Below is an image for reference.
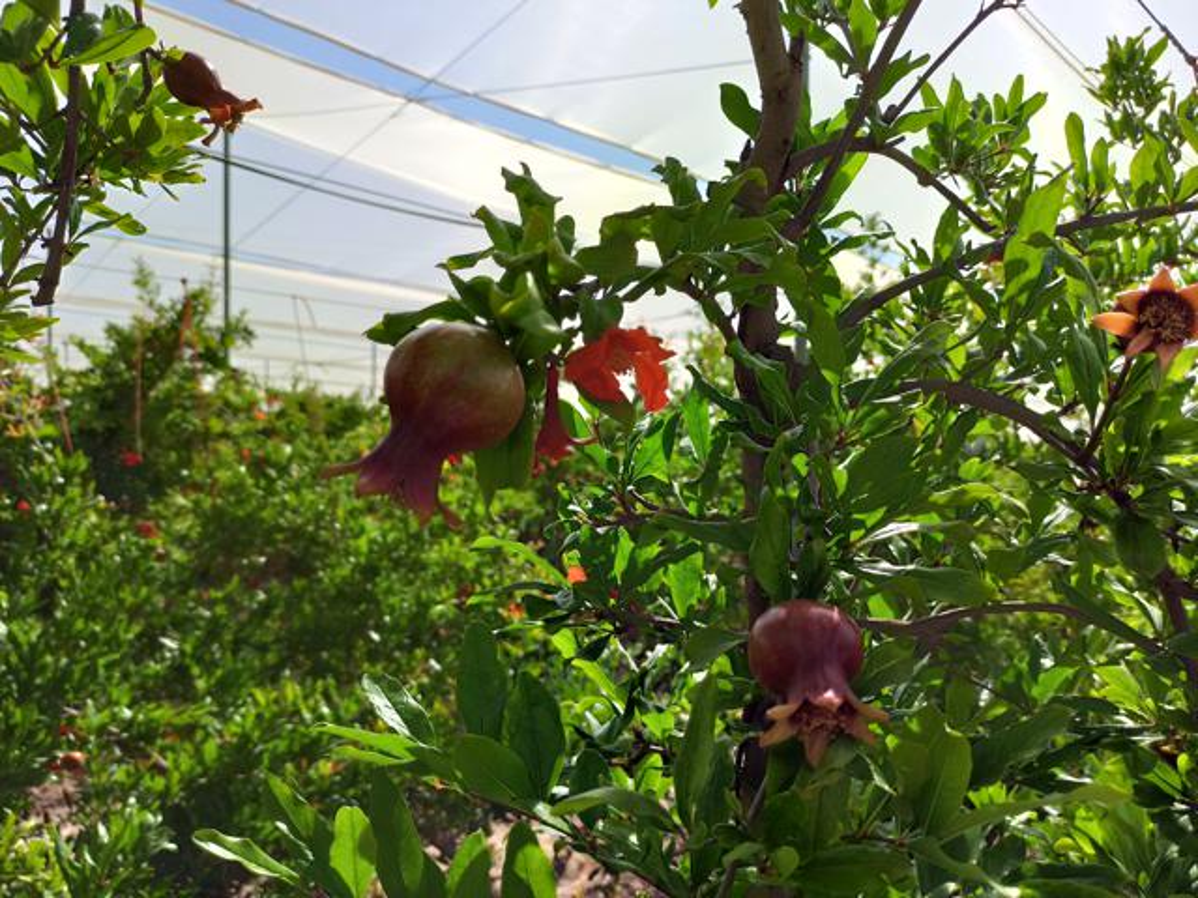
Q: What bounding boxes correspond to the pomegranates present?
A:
[161,51,266,148]
[749,599,895,771]
[318,320,526,531]
[1091,262,1198,372]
